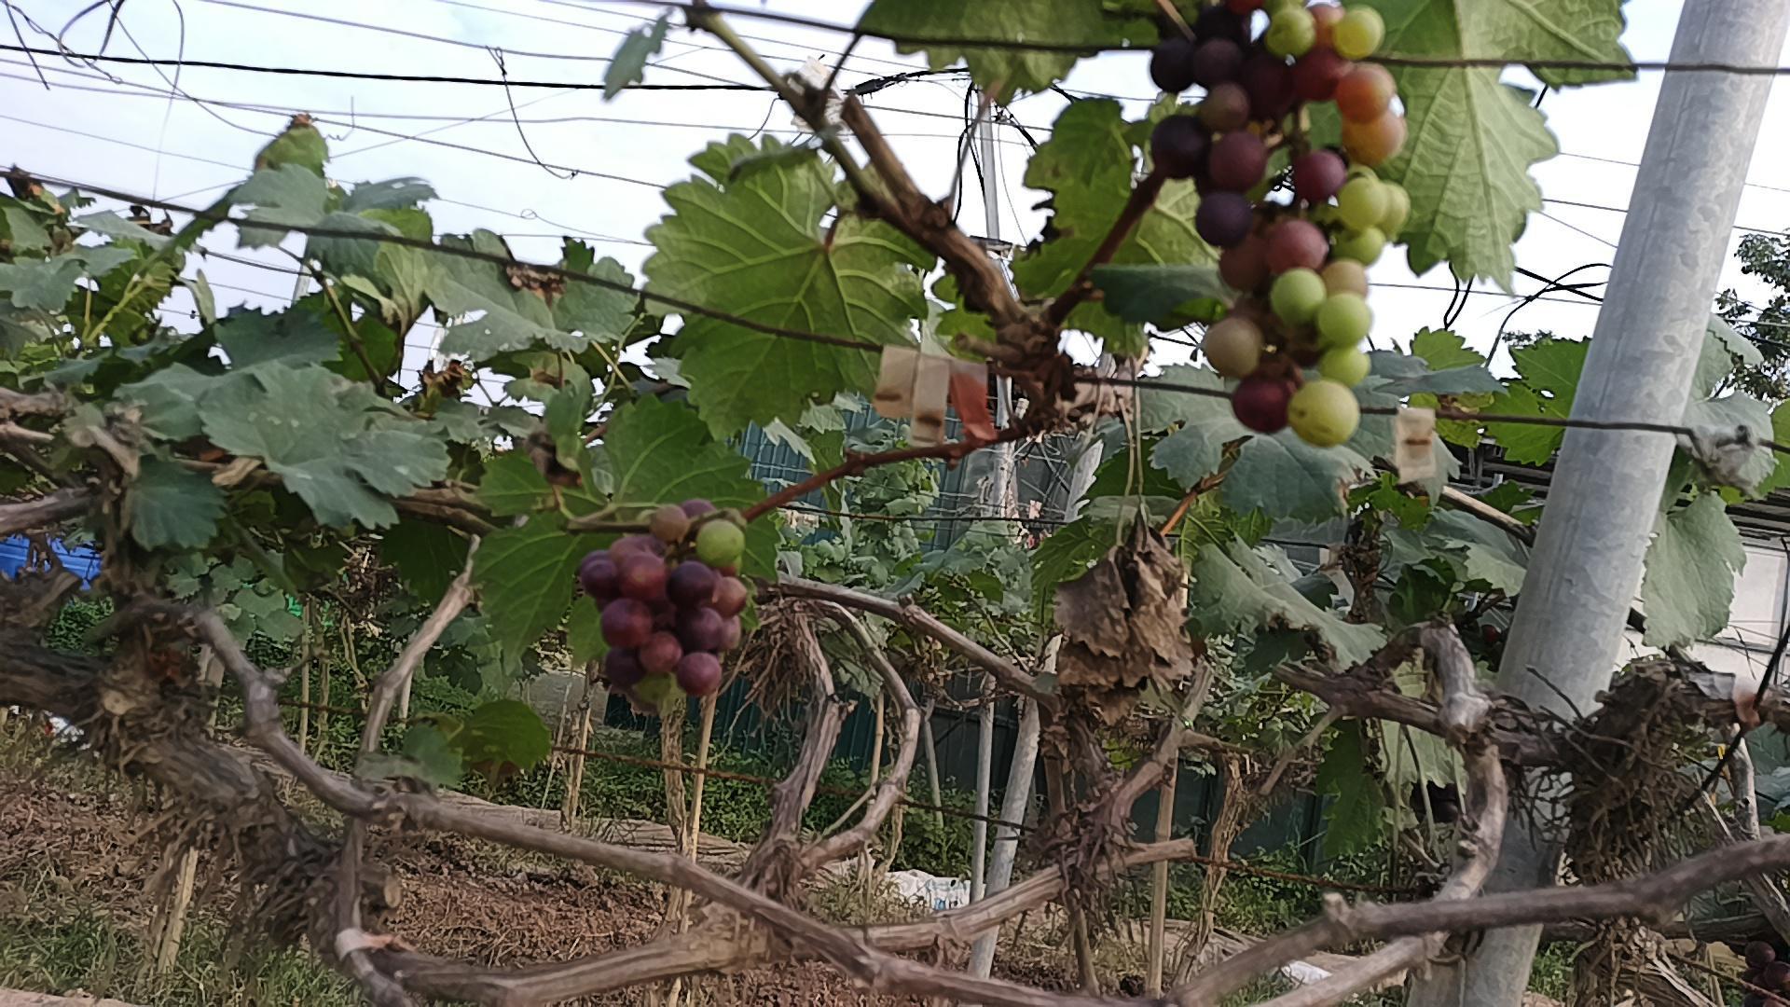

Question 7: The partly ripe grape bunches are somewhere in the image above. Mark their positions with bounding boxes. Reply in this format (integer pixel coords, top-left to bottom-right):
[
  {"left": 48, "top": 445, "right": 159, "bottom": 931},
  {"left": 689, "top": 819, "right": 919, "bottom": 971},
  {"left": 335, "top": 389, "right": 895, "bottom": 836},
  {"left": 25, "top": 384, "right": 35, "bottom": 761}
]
[
  {"left": 1150, "top": 0, "right": 1410, "bottom": 449},
  {"left": 577, "top": 499, "right": 747, "bottom": 703}
]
